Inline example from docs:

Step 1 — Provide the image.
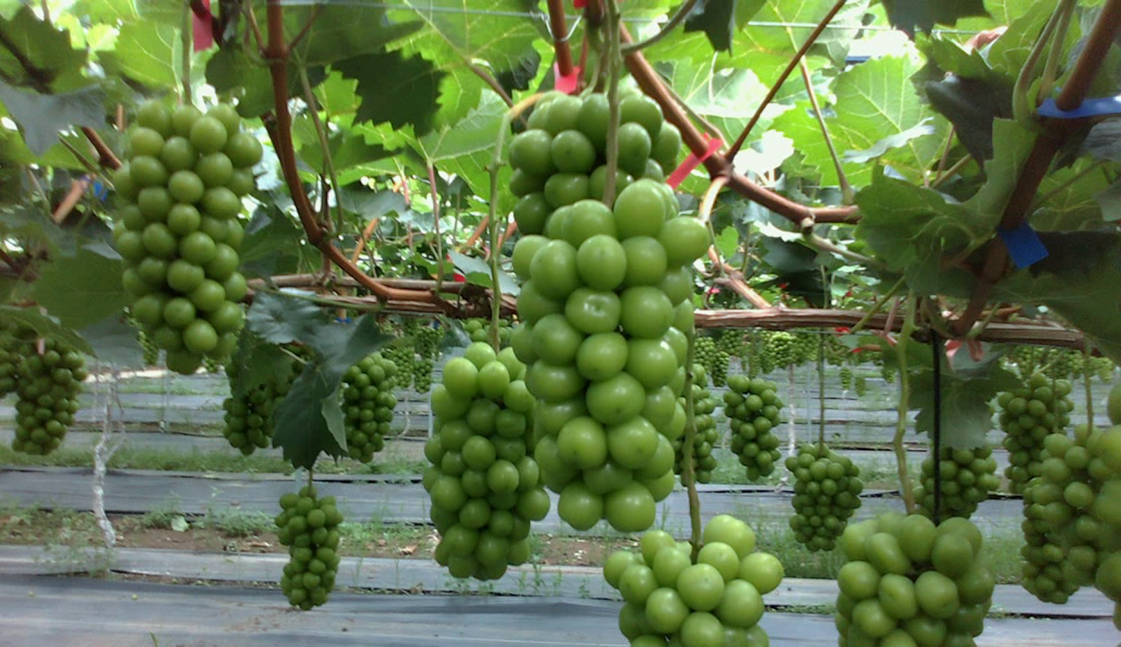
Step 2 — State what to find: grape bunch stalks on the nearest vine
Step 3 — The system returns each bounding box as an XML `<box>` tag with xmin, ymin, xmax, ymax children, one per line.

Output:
<box><xmin>602</xmin><ymin>0</ymin><xmax>622</xmax><ymax>209</ymax></box>
<box><xmin>684</xmin><ymin>337</ymin><xmax>700</xmax><ymax>564</ymax></box>
<box><xmin>1083</xmin><ymin>340</ymin><xmax>1093</xmax><ymax>439</ymax></box>
<box><xmin>181</xmin><ymin>1</ymin><xmax>192</xmax><ymax>106</ymax></box>
<box><xmin>488</xmin><ymin>92</ymin><xmax>541</xmax><ymax>354</ymax></box>
<box><xmin>893</xmin><ymin>290</ymin><xmax>918</xmax><ymax>516</ymax></box>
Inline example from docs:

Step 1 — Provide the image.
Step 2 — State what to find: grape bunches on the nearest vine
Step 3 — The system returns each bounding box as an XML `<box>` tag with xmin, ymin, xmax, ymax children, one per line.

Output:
<box><xmin>507</xmin><ymin>84</ymin><xmax>681</xmax><ymax>236</ymax></box>
<box><xmin>511</xmin><ymin>178</ymin><xmax>712</xmax><ymax>533</ymax></box>
<box><xmin>1032</xmin><ymin>423</ymin><xmax>1117</xmax><ymax>585</ymax></box>
<box><xmin>603</xmin><ymin>514</ymin><xmax>783</xmax><ymax>646</ymax></box>
<box><xmin>113</xmin><ymin>100</ymin><xmax>262</xmax><ymax>375</ymax></box>
<box><xmin>1095</xmin><ymin>383</ymin><xmax>1120</xmax><ymax>629</ymax></box>
<box><xmin>421</xmin><ymin>342</ymin><xmax>550</xmax><ymax>581</ymax></box>
<box><xmin>834</xmin><ymin>512</ymin><xmax>993</xmax><ymax>646</ymax></box>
